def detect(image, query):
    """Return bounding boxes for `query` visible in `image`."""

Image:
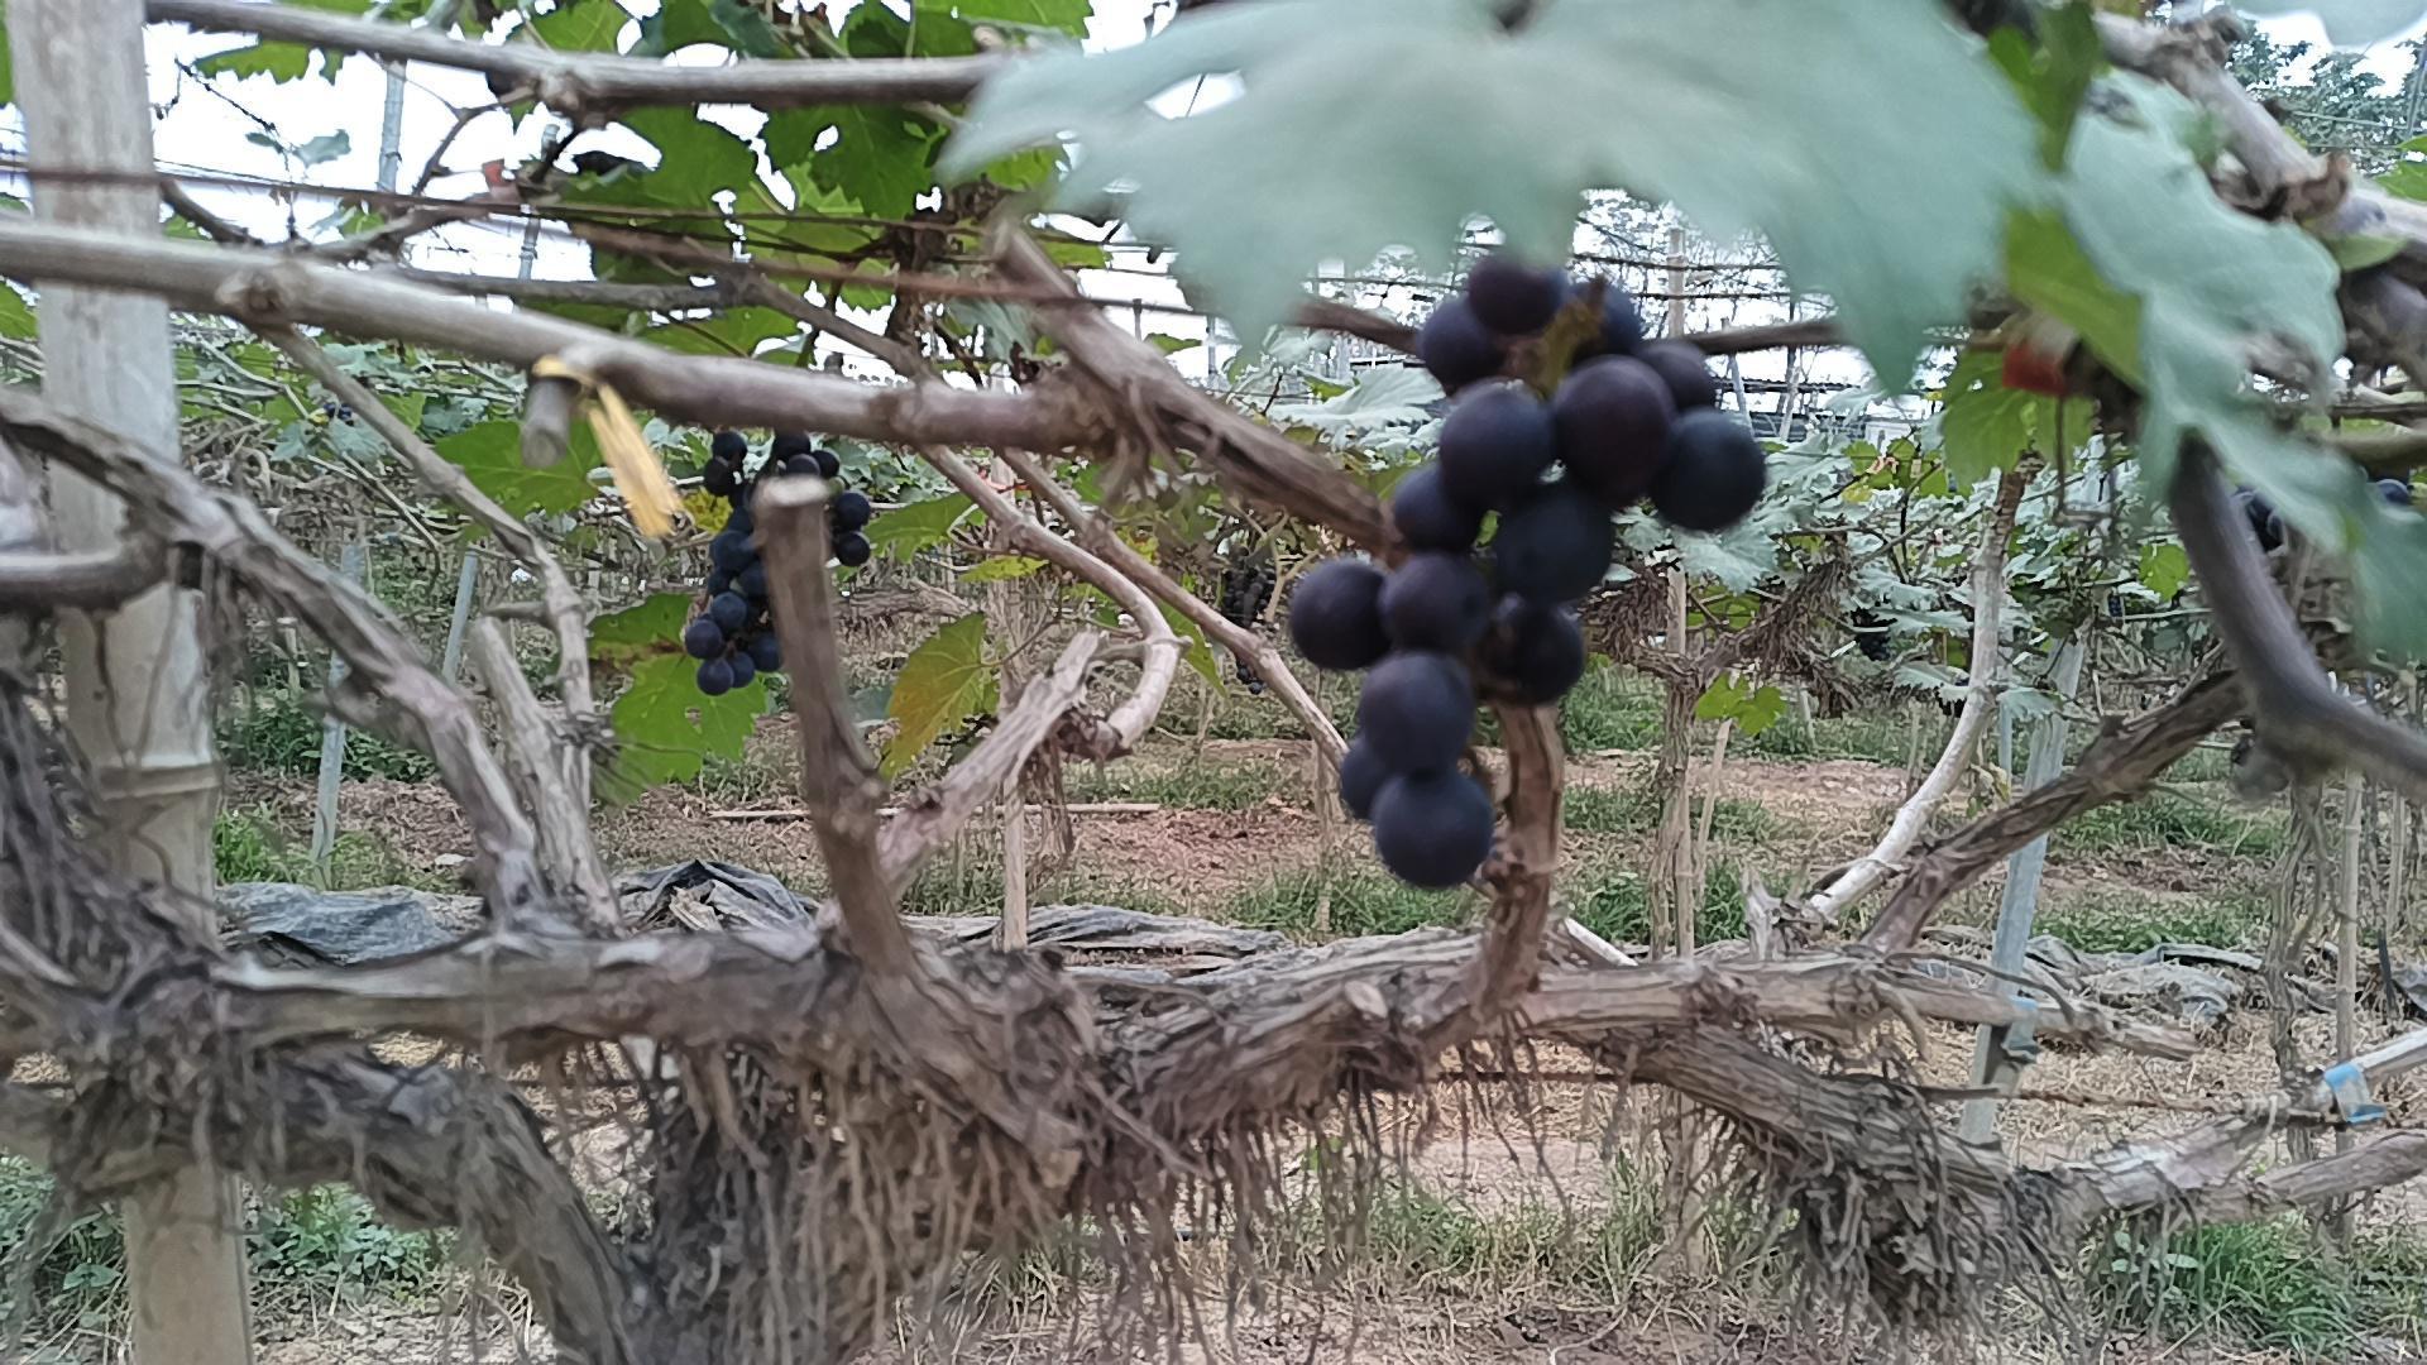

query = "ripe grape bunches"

[1291,255,1765,889]
[683,432,872,696]
[1213,554,1278,695]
